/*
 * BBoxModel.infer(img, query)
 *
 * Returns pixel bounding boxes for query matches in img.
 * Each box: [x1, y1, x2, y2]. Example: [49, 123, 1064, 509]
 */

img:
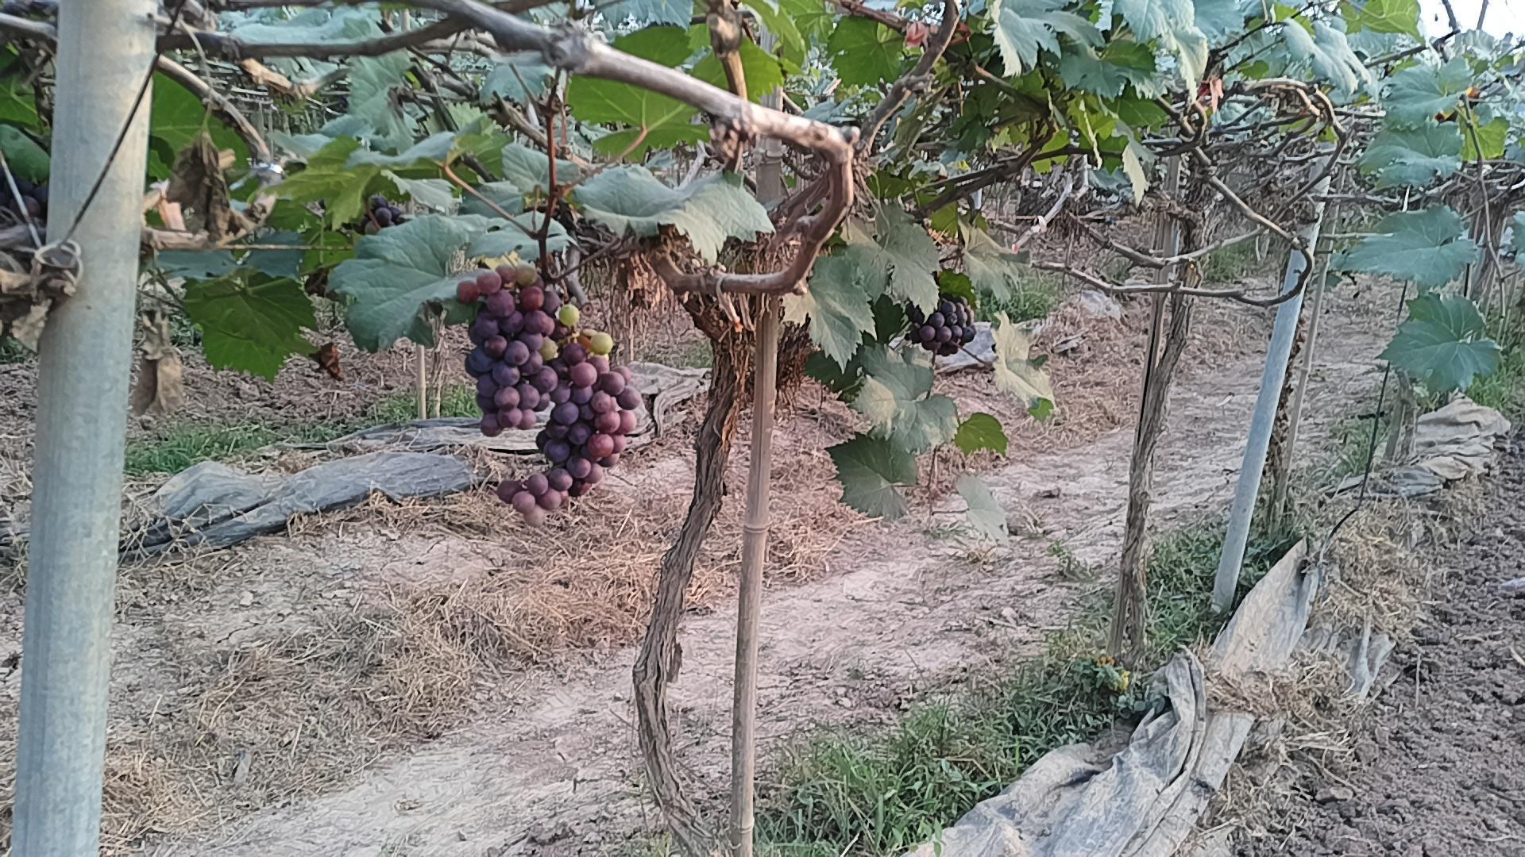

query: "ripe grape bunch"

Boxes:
[904, 295, 977, 357]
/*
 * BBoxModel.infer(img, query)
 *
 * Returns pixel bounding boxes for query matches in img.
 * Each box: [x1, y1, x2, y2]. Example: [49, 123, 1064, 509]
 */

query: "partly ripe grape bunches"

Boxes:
[496, 328, 642, 526]
[342, 197, 409, 236]
[457, 263, 580, 436]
